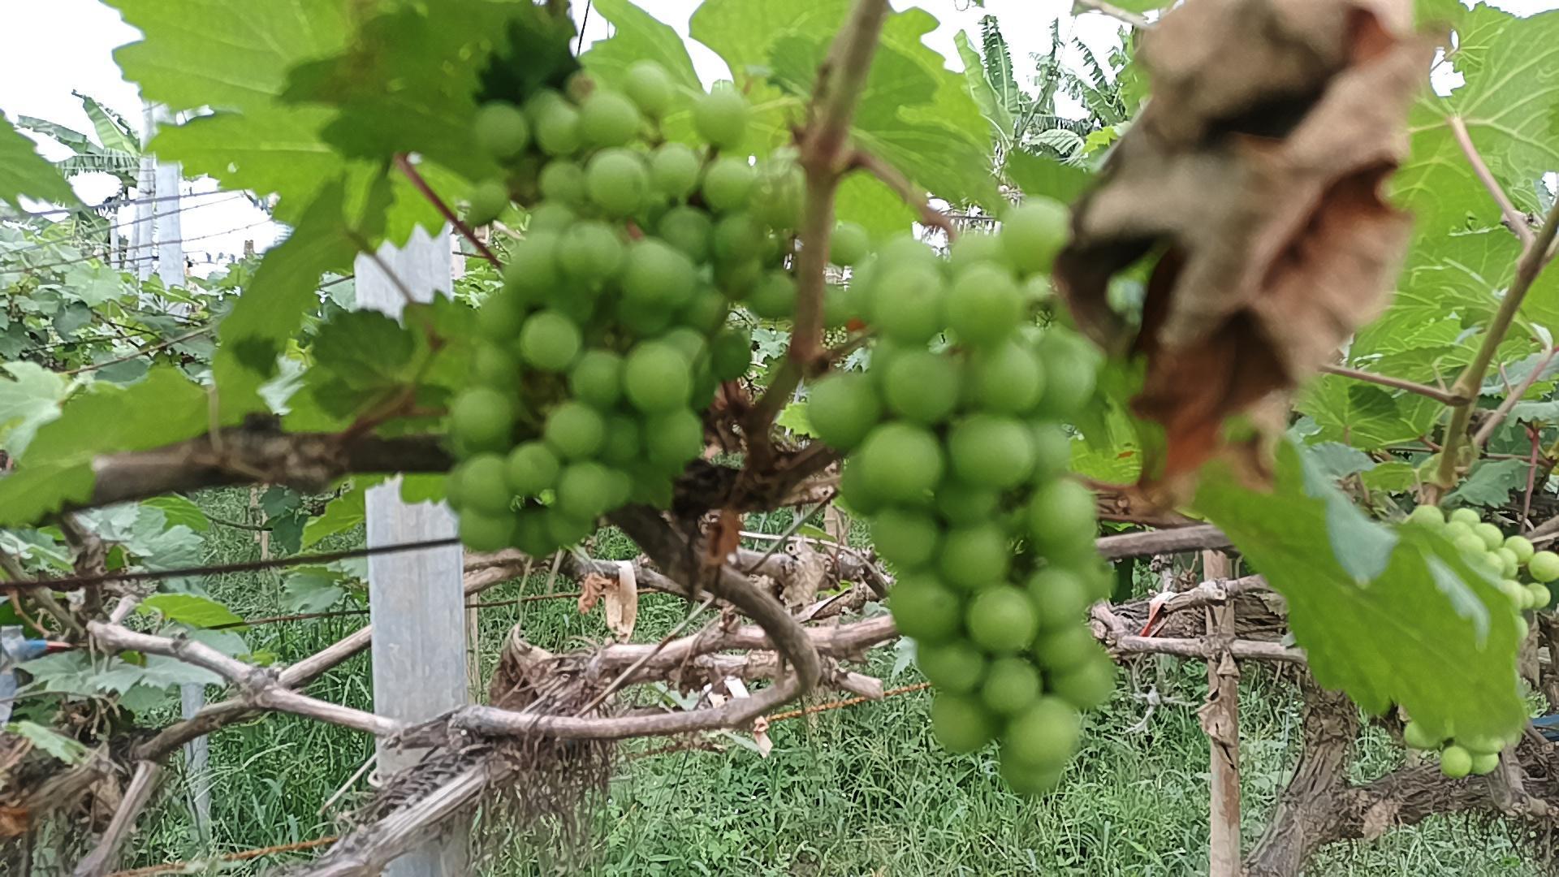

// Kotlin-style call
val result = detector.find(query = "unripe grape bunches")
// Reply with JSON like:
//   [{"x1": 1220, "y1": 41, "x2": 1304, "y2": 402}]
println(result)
[
  {"x1": 447, "y1": 62, "x2": 793, "y2": 556},
  {"x1": 1390, "y1": 507, "x2": 1558, "y2": 777},
  {"x1": 806, "y1": 202, "x2": 1115, "y2": 797}
]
